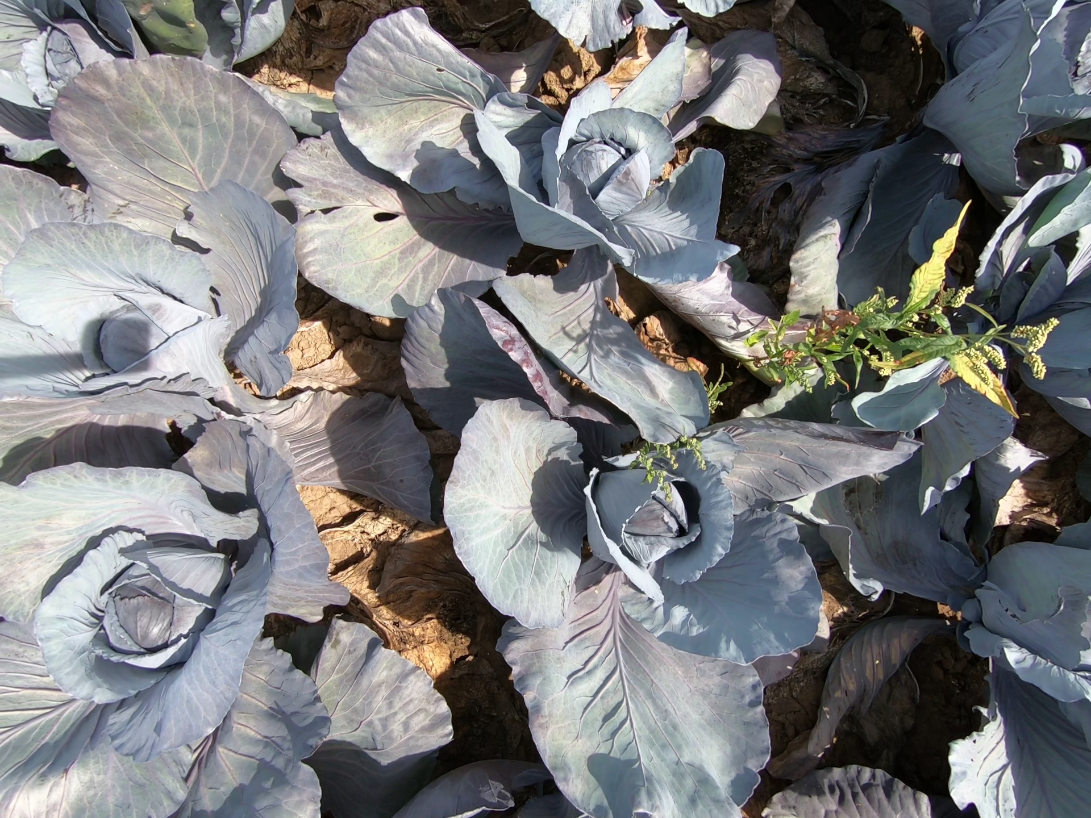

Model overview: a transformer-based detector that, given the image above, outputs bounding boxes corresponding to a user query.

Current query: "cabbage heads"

[105,549,222,666]
[96,295,210,385]
[36,19,137,111]
[554,141,638,212]
[600,472,685,558]
[1014,0,1090,114]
